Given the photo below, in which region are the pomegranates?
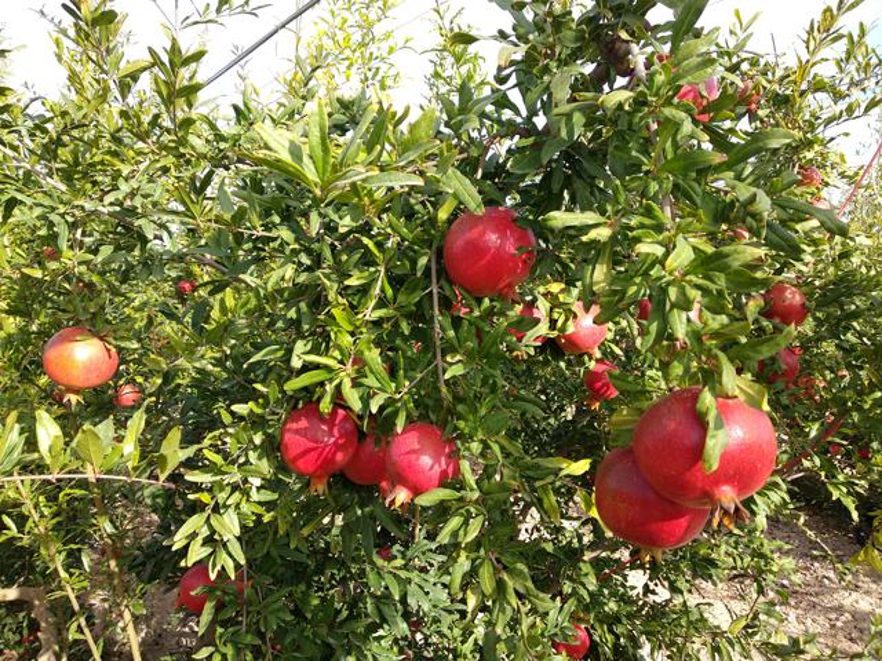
[737,80,761,113]
[444,205,536,307]
[557,302,608,361]
[343,432,396,500]
[113,383,142,408]
[41,326,121,406]
[633,386,777,530]
[798,167,821,187]
[178,280,197,295]
[278,401,358,496]
[175,563,216,617]
[769,346,802,384]
[675,76,718,121]
[594,442,712,565]
[583,359,620,413]
[383,420,462,514]
[553,624,591,660]
[763,281,808,325]
[637,299,652,318]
